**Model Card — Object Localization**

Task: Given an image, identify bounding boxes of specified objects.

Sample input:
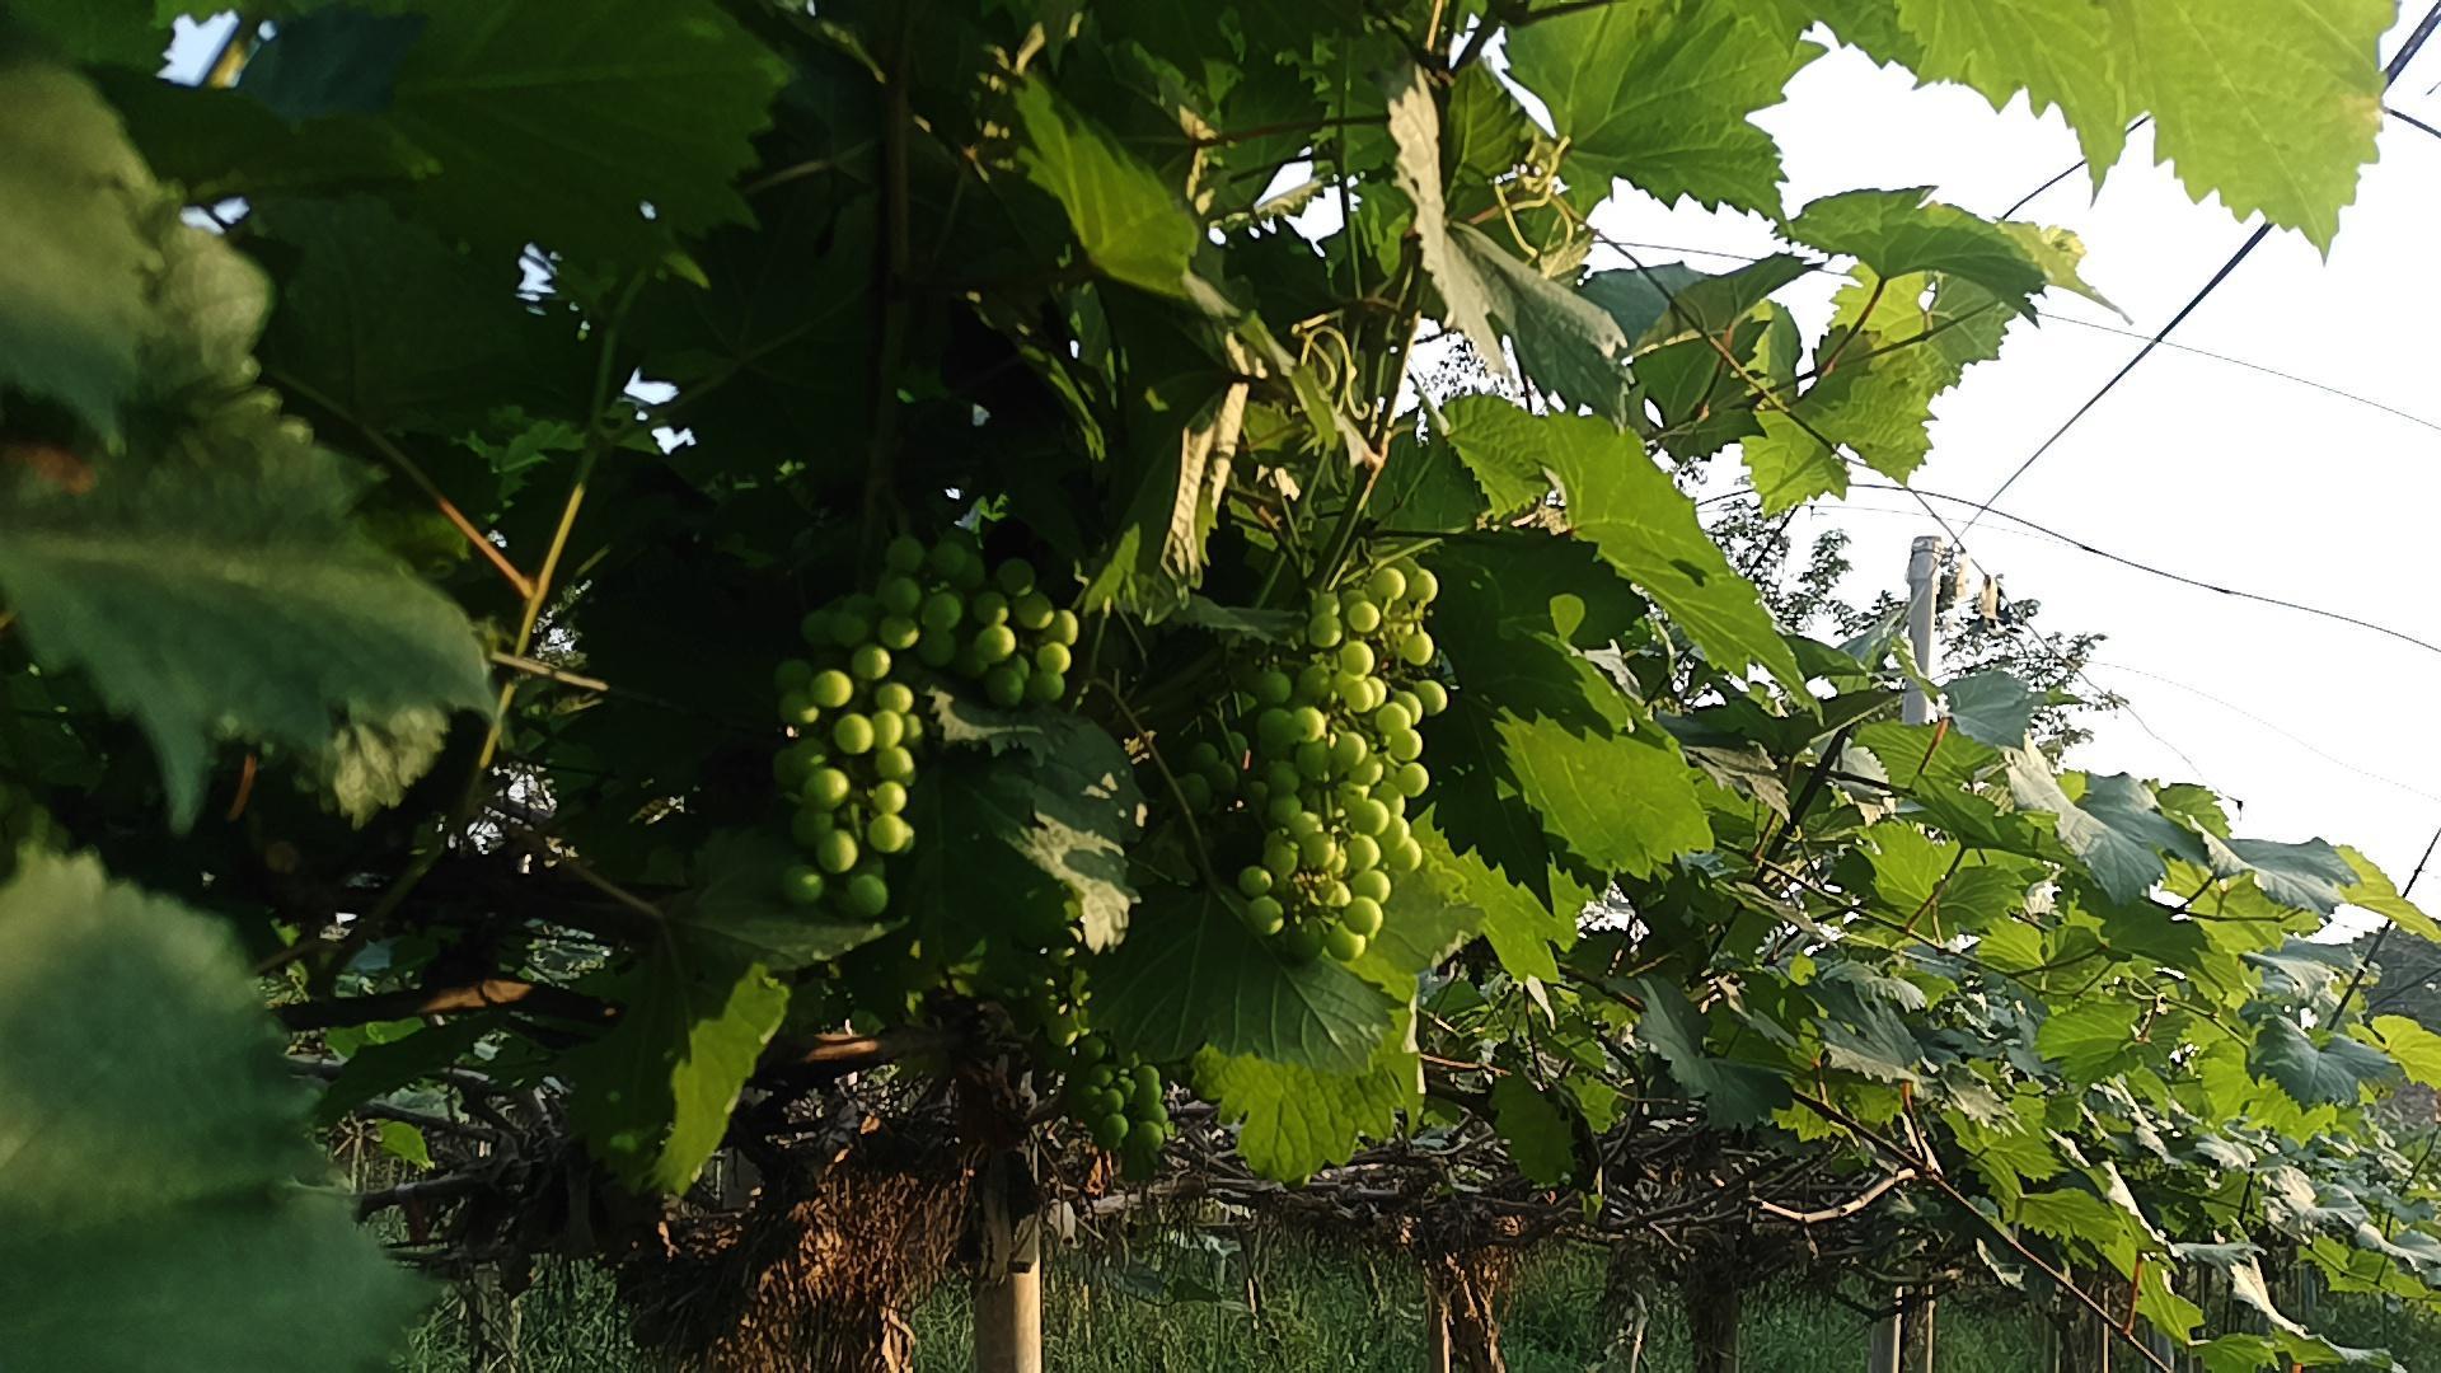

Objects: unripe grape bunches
[1025,947,1091,1053]
[1236,559,1447,960]
[1069,1034,1171,1180]
[873,526,1082,711]
[1133,728,1248,868]
[776,594,924,914]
